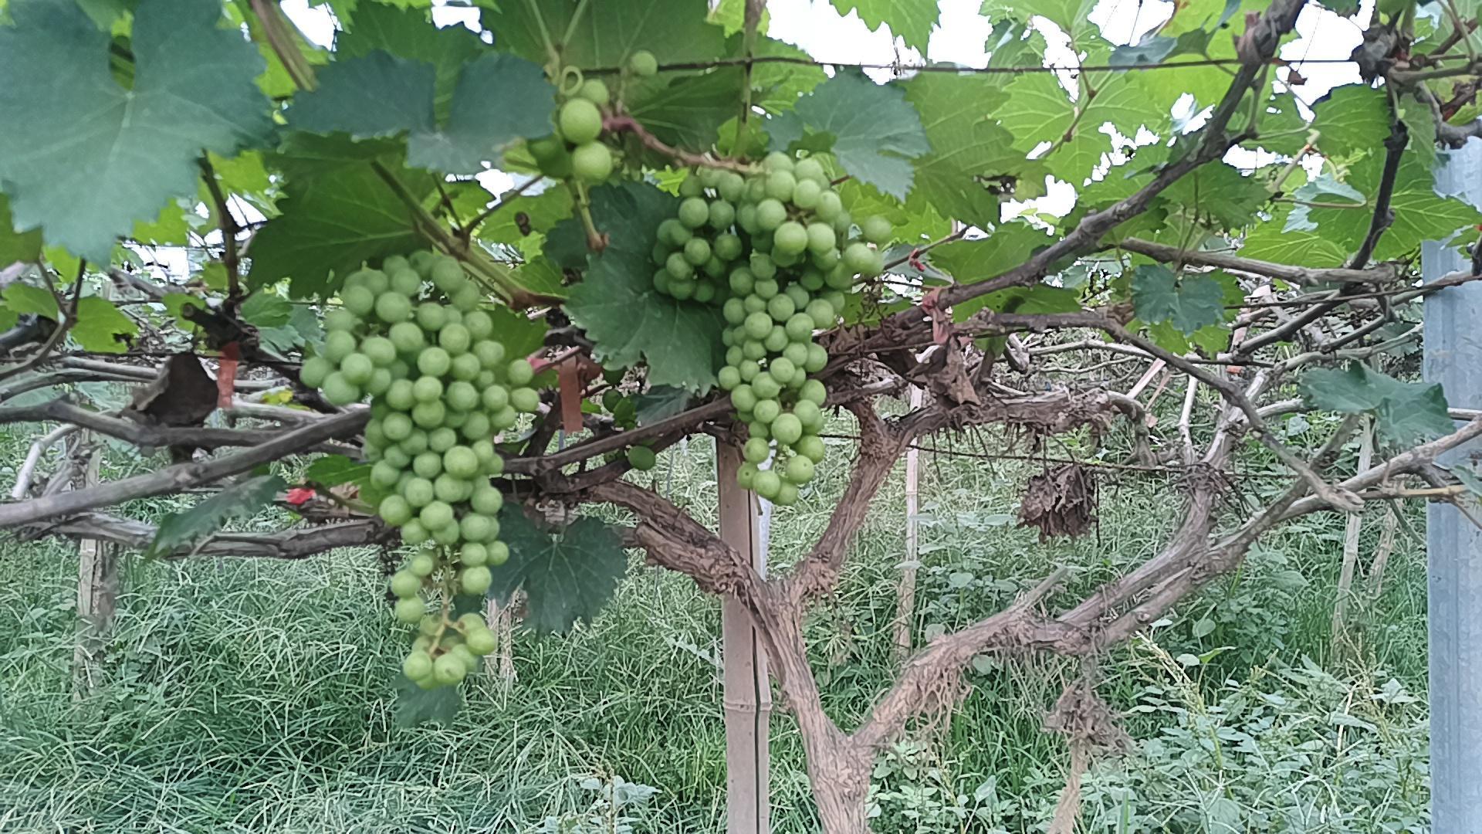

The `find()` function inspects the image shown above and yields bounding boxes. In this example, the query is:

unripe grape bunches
[653,153,891,503]
[529,51,657,181]
[602,370,624,388]
[303,252,540,691]
[601,389,662,469]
